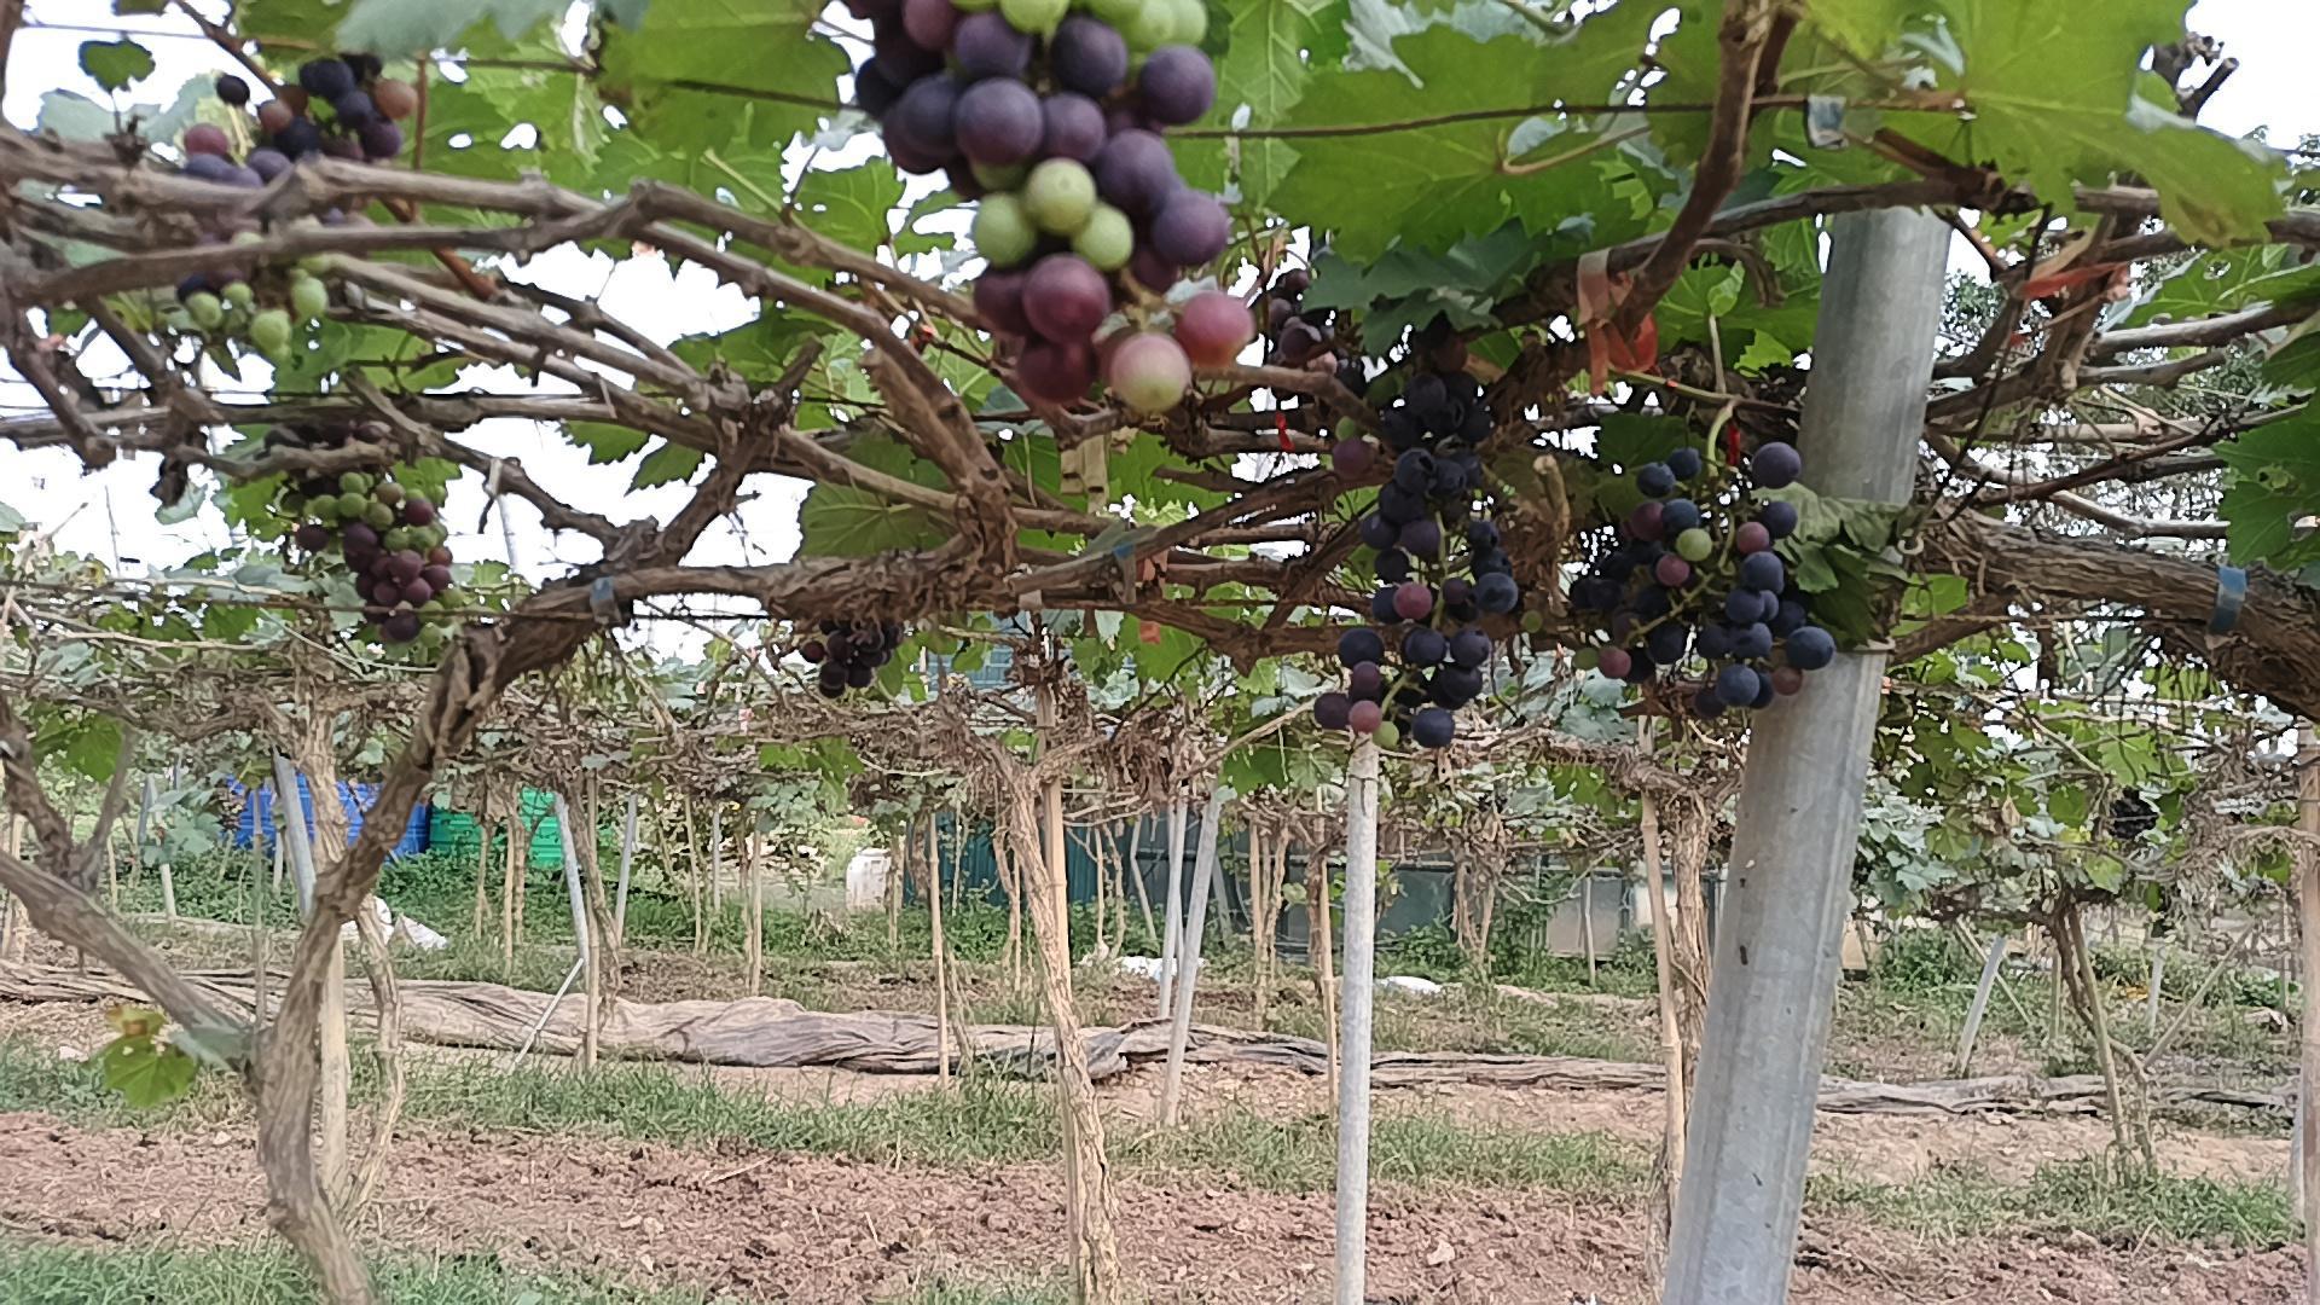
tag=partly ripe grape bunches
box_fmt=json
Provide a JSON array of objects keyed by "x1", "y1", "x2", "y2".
[
  {"x1": 280, "y1": 470, "x2": 458, "y2": 642},
  {"x1": 851, "y1": 0, "x2": 1246, "y2": 414},
  {"x1": 1313, "y1": 323, "x2": 1518, "y2": 747},
  {"x1": 1570, "y1": 442, "x2": 1837, "y2": 717},
  {"x1": 176, "y1": 53, "x2": 420, "y2": 364}
]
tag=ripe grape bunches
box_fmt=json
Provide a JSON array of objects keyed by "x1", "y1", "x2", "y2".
[
  {"x1": 2107, "y1": 788, "x2": 2159, "y2": 847},
  {"x1": 1263, "y1": 268, "x2": 1339, "y2": 401},
  {"x1": 799, "y1": 620, "x2": 904, "y2": 697}
]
